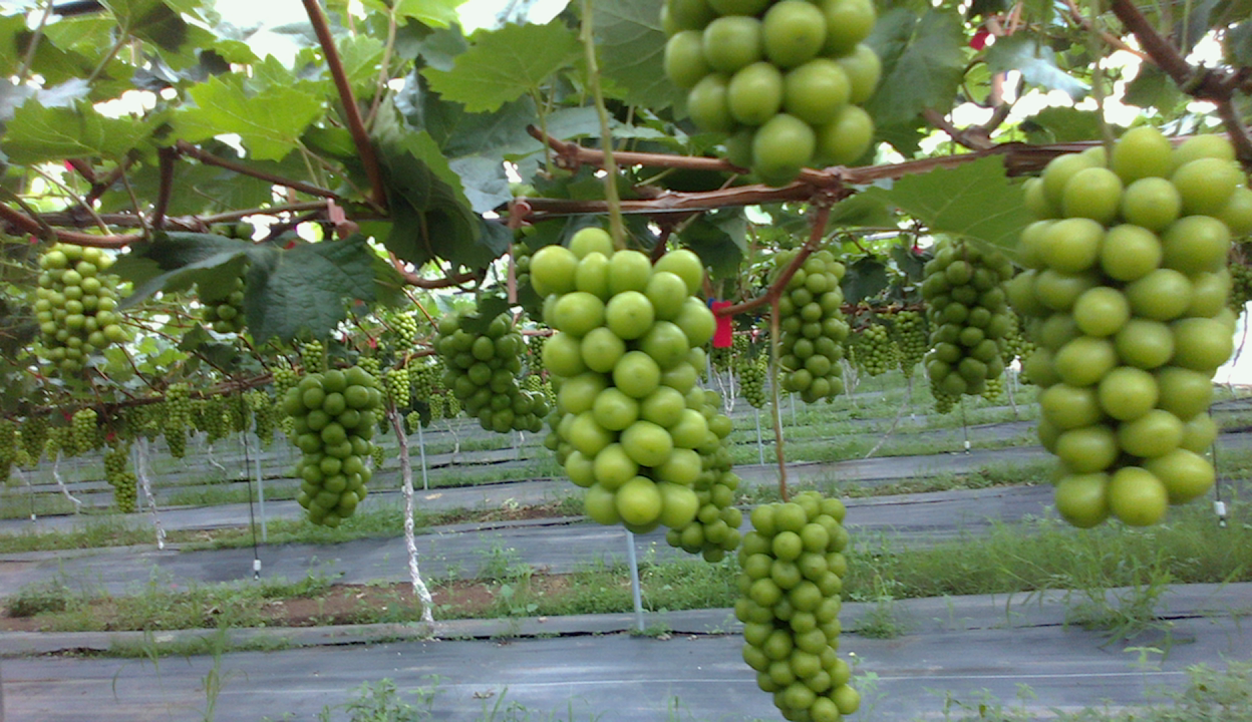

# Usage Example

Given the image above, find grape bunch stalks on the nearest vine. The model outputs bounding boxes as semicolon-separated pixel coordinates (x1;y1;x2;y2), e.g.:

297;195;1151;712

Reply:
1086;3;1113;156
769;306;789;503
580;7;624;251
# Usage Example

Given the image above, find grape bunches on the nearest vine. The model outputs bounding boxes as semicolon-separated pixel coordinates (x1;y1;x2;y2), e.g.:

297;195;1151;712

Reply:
1007;125;1251;528
658;0;883;184
531;229;716;531
735;491;860;721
